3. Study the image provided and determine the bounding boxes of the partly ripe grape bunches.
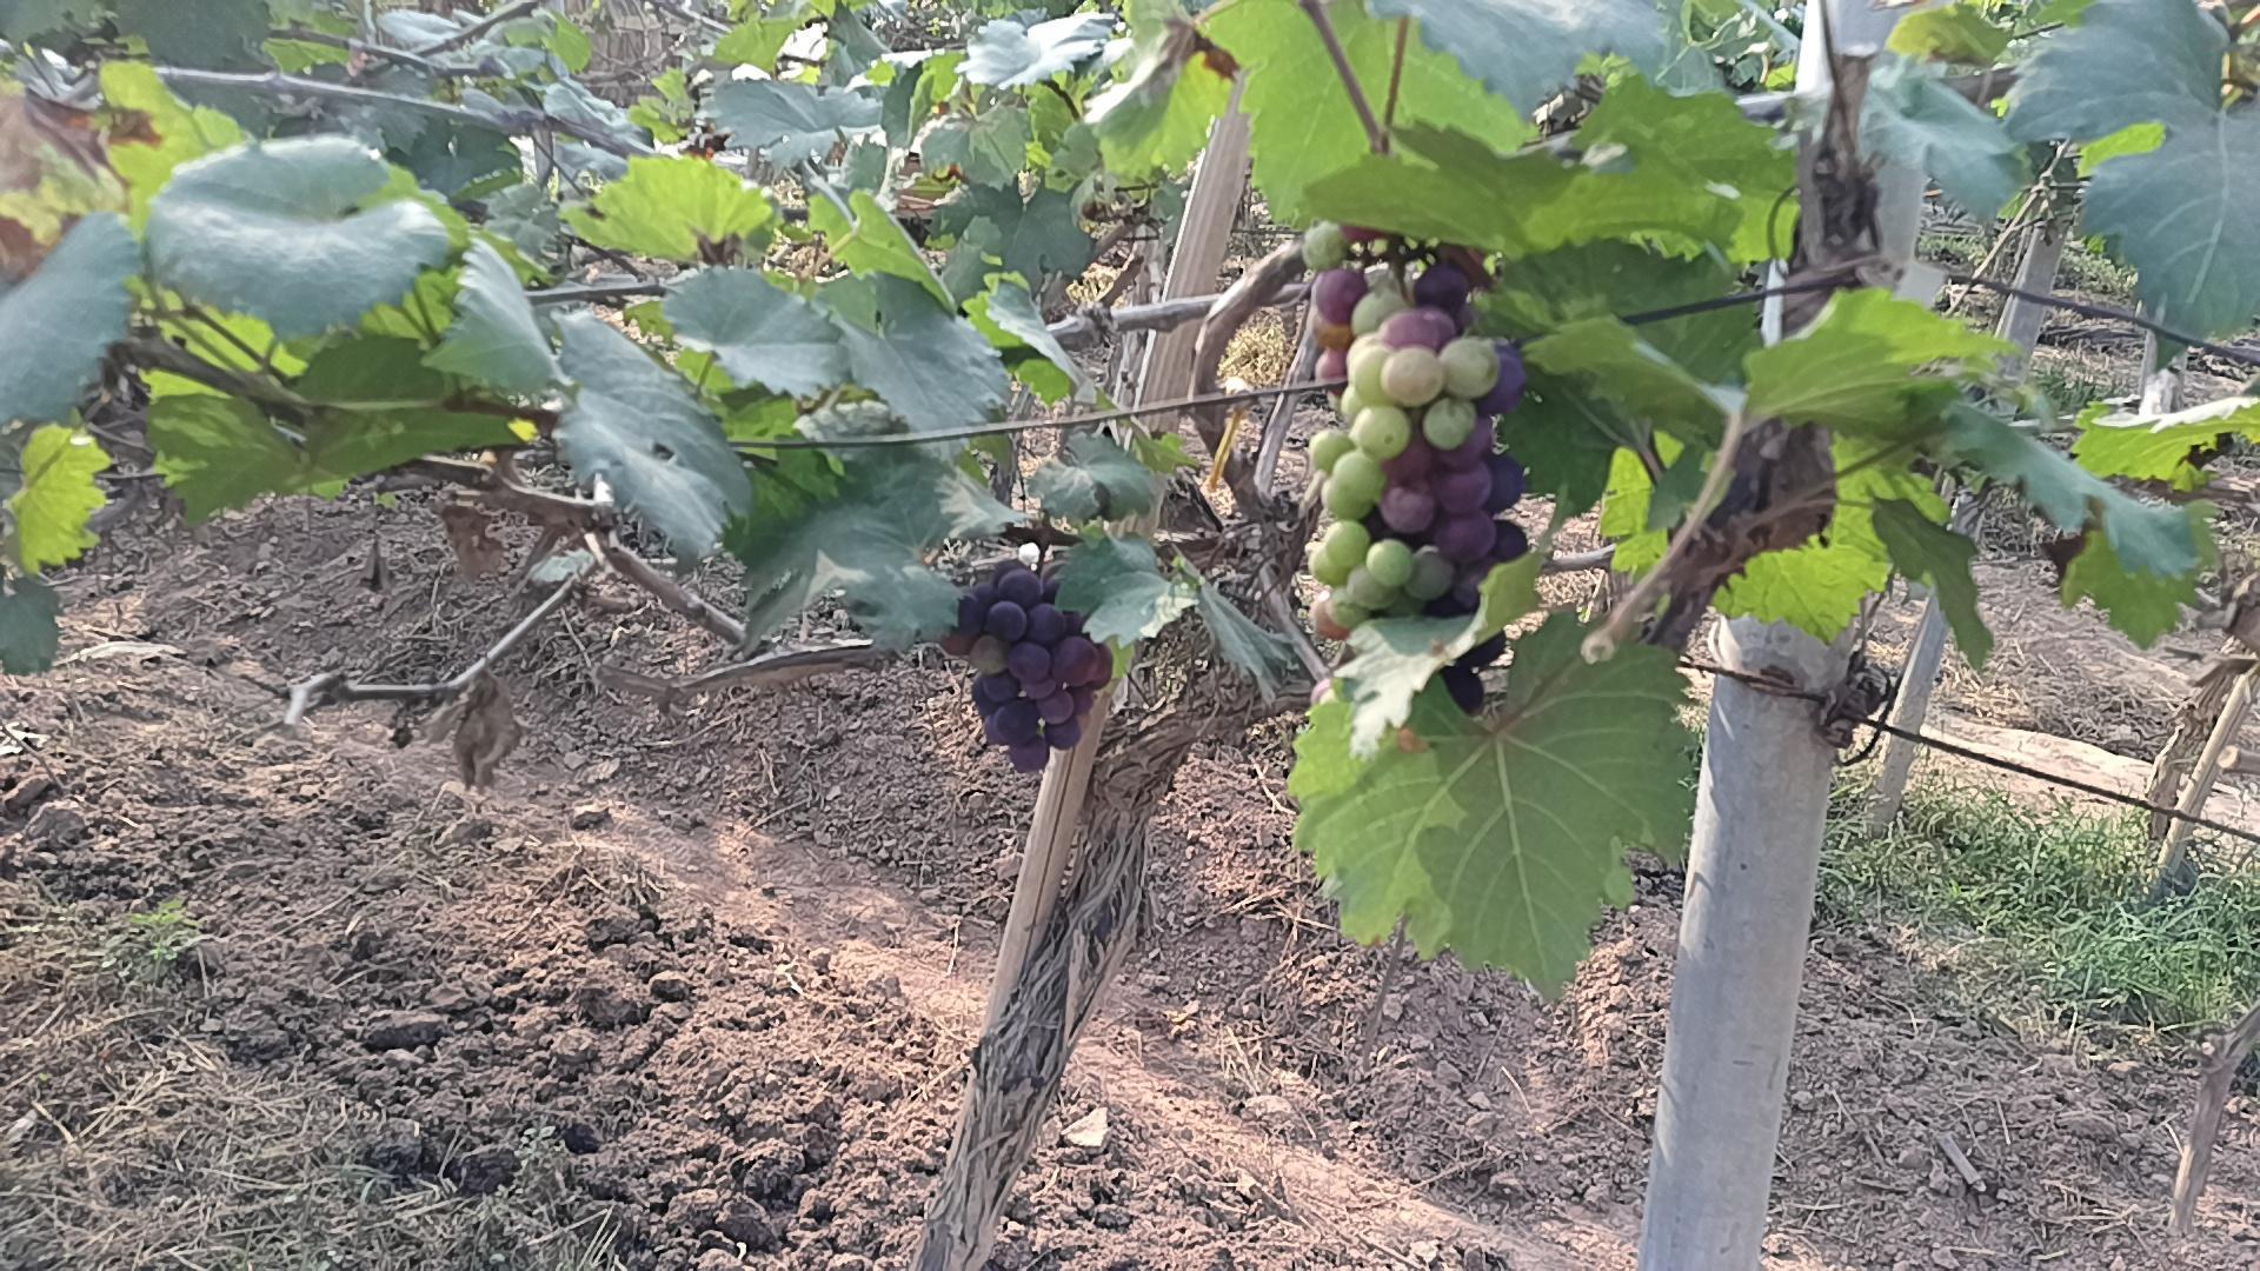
[1301,225,1525,713]
[939,560,1111,771]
